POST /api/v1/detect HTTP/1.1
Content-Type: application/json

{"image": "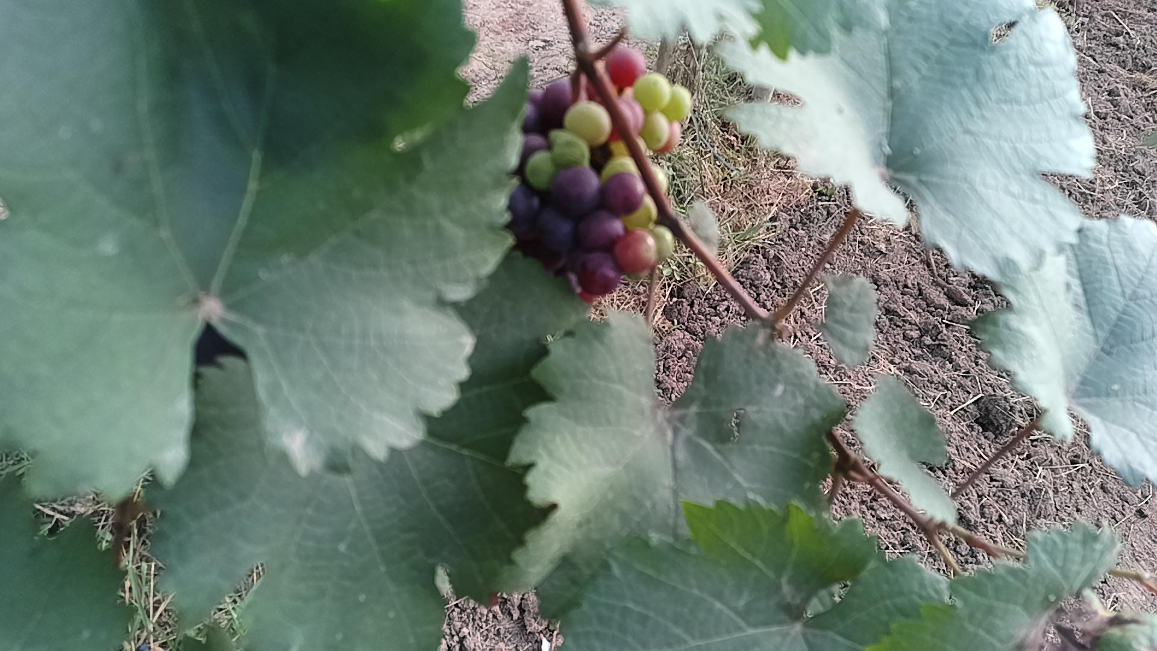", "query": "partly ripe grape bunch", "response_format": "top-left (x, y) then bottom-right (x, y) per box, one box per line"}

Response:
top-left (507, 46), bottom-right (692, 301)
